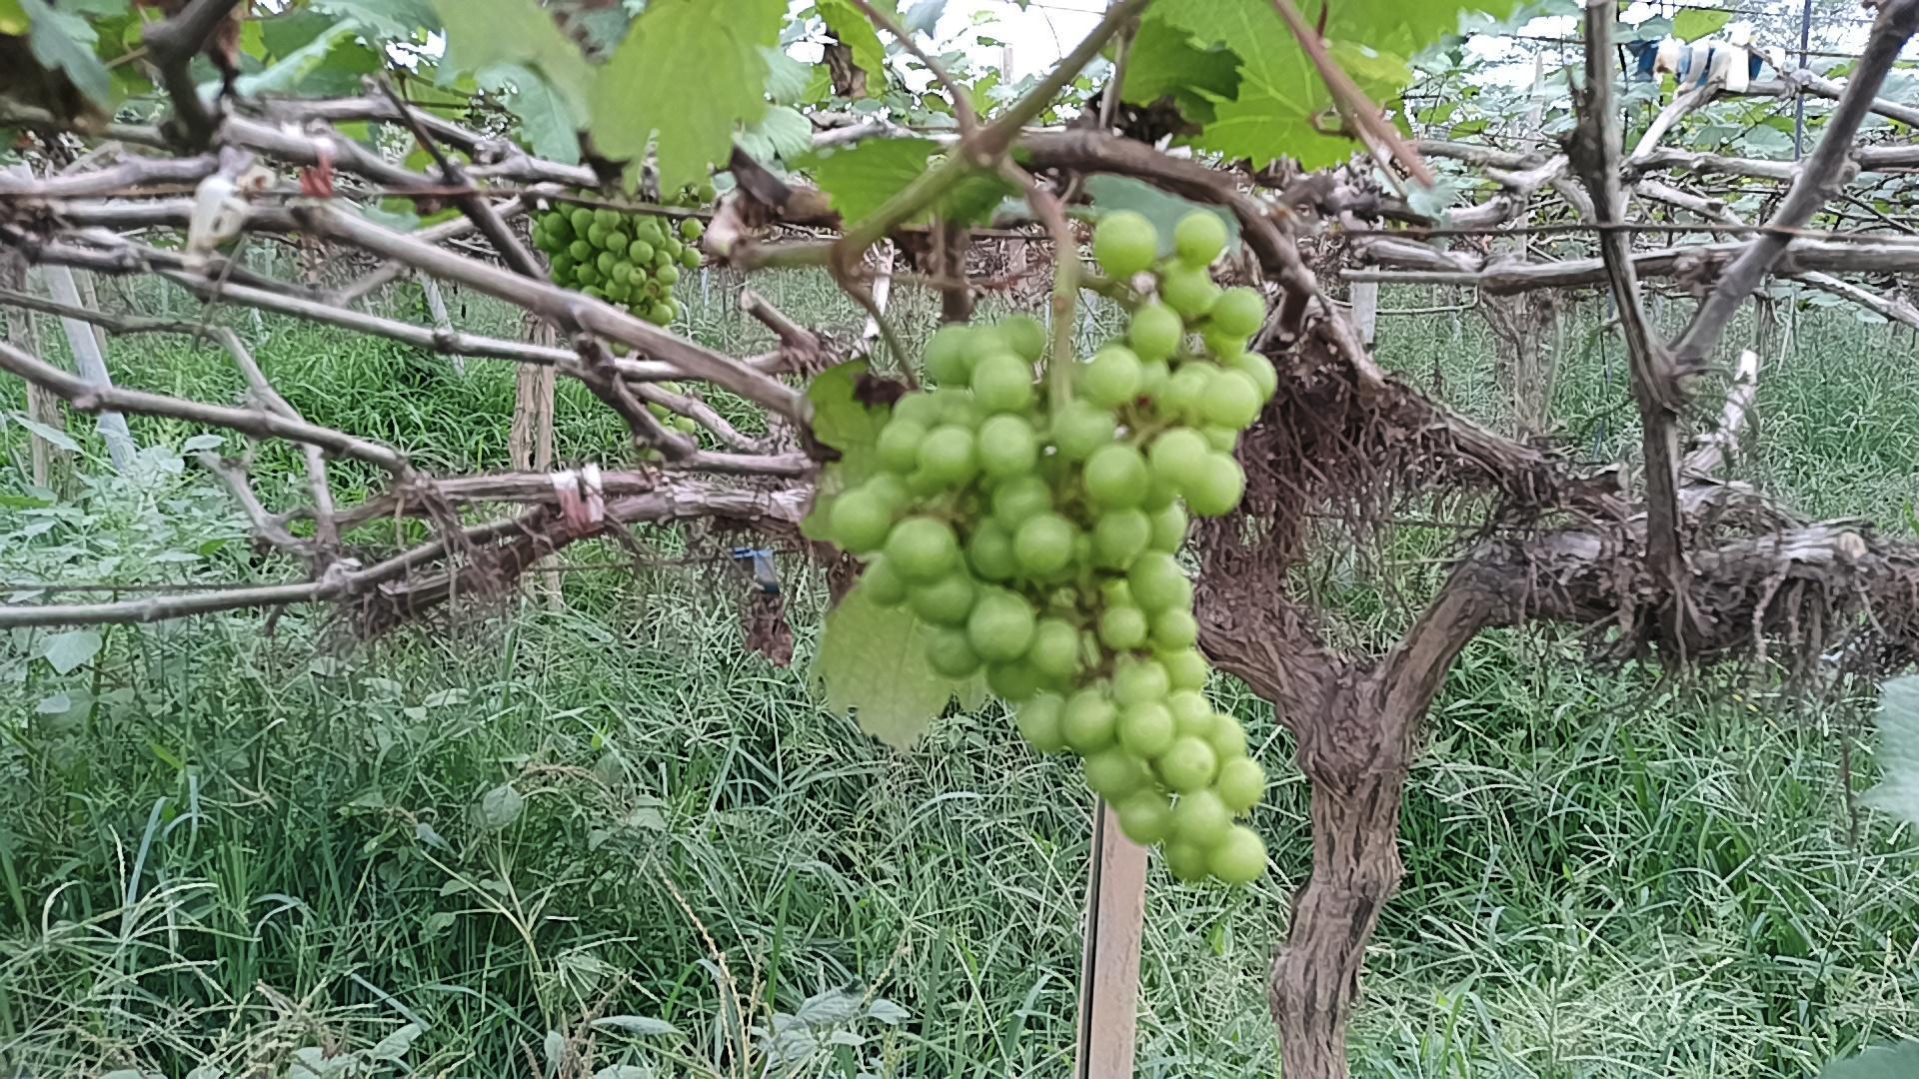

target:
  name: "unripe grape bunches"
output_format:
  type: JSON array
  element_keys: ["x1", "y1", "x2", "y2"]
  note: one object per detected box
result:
[
  {"x1": 794, "y1": 201, "x2": 1284, "y2": 891},
  {"x1": 527, "y1": 186, "x2": 715, "y2": 329}
]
